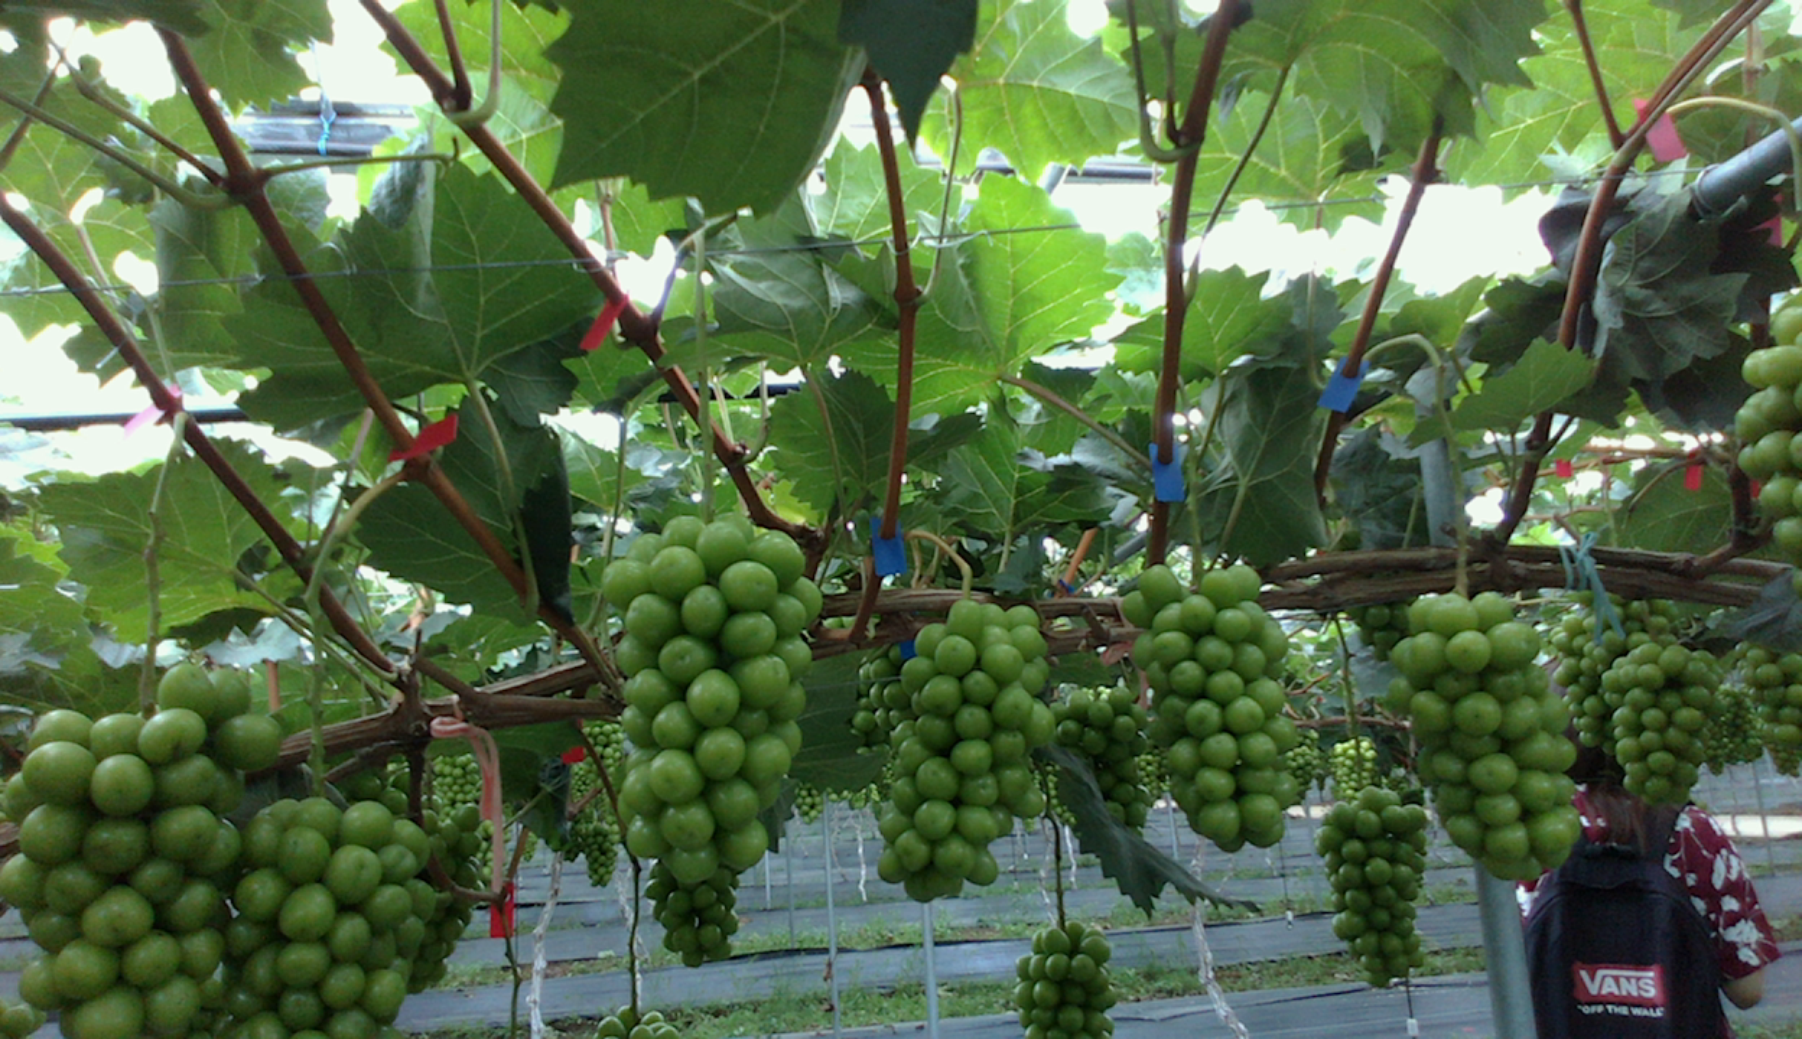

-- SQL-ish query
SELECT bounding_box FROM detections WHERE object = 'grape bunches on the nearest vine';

[1120,566,1298,854]
[601,509,823,886]
[876,599,1055,905]
[1386,592,1583,883]
[201,799,439,1036]
[0,659,283,1038]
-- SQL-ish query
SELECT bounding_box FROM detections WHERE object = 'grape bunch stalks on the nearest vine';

[680,215,736,521]
[1366,335,1470,595]
[140,414,185,716]
[911,531,970,600]
[1178,382,1203,590]
[305,470,409,795]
